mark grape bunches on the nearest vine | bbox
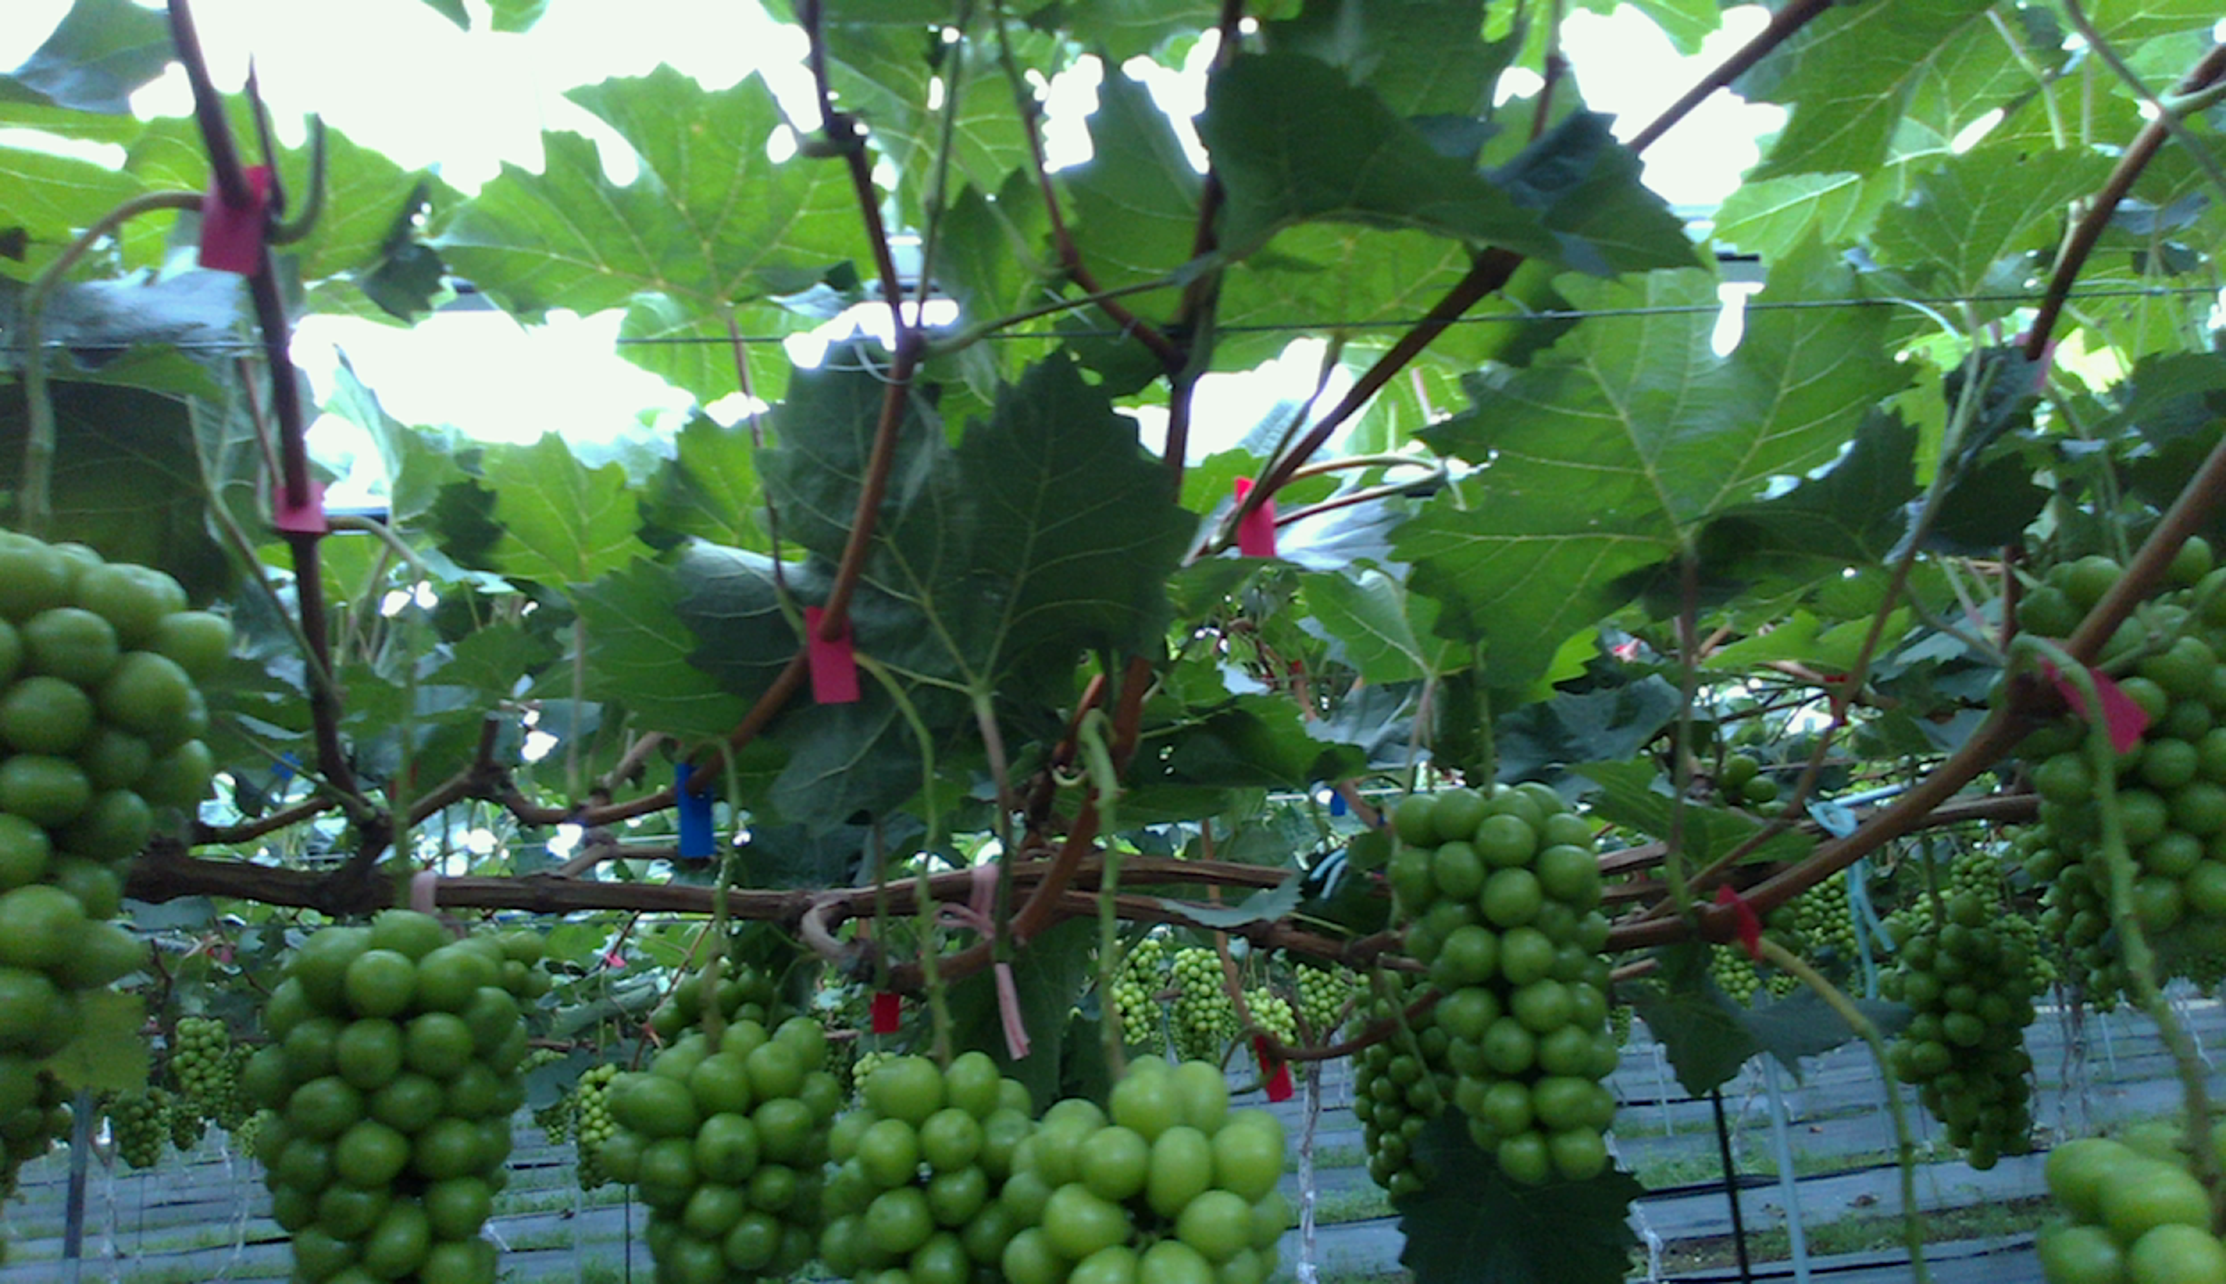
[1391,781,1616,1186]
[0,531,228,1129]
[2039,1118,2224,1282]
[250,911,530,1282]
[592,1017,838,1282]
[815,1054,1029,1282]
[1002,1054,1295,1282]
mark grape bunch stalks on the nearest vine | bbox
[705,737,740,1052]
[23,193,203,533]
[1077,710,1125,1081]
[860,656,951,1063]
[2012,633,2217,1184]
[394,606,423,909]
[1477,669,1495,790]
